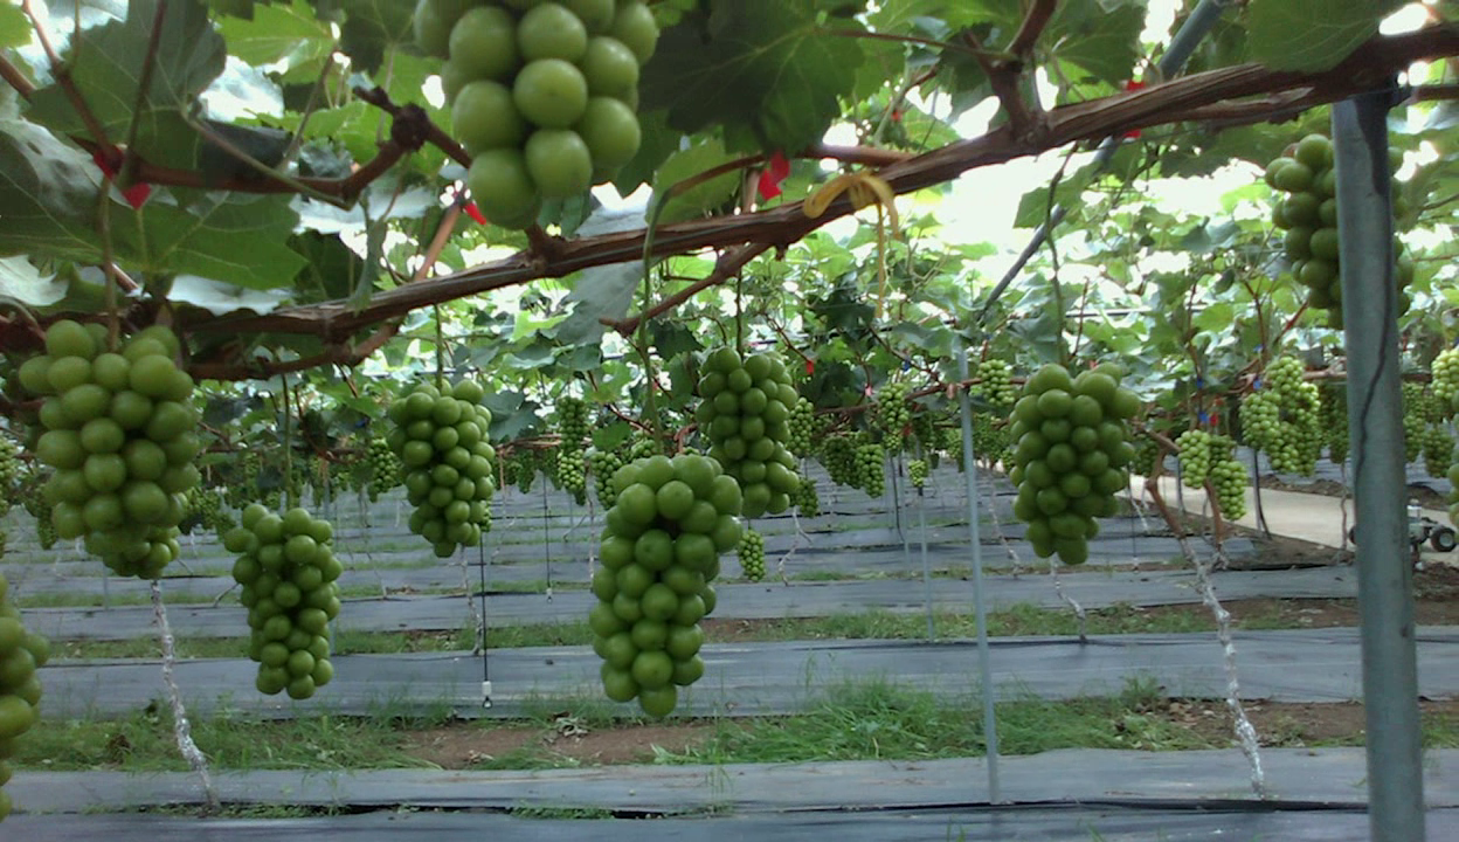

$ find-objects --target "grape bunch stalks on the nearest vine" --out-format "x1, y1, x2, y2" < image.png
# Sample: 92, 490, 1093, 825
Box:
639, 154, 762, 455
98, 175, 118, 354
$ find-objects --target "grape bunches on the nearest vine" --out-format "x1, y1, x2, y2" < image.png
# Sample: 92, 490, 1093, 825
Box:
590, 454, 744, 717
417, 0, 657, 230
19, 319, 200, 561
